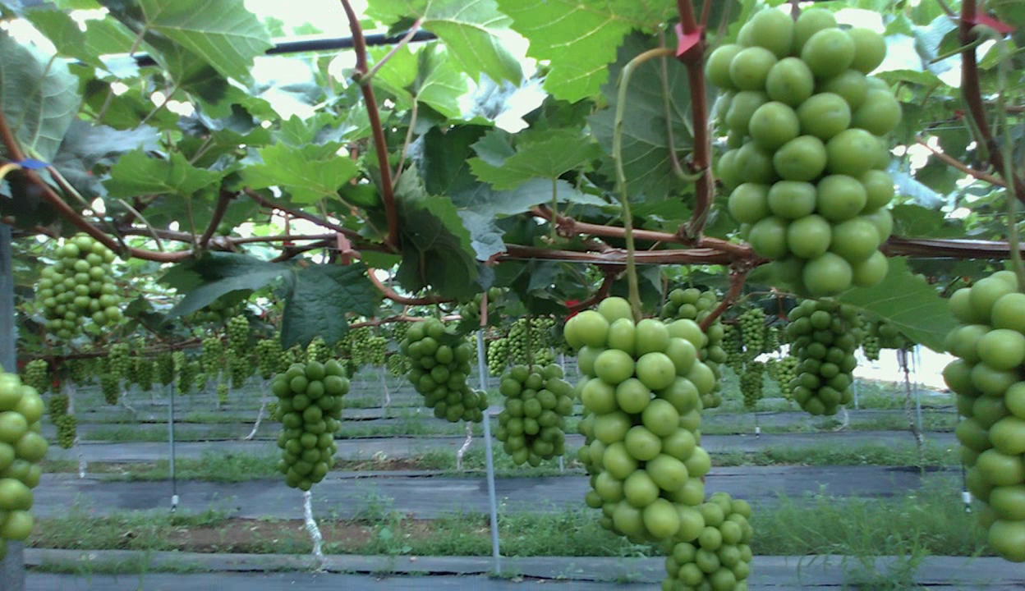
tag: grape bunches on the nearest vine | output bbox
[563,296,715,542]
[942,270,1024,565]
[705,8,903,297]
[1,365,50,561]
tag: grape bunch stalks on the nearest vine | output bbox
[611,48,677,321]
[970,25,1024,292]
